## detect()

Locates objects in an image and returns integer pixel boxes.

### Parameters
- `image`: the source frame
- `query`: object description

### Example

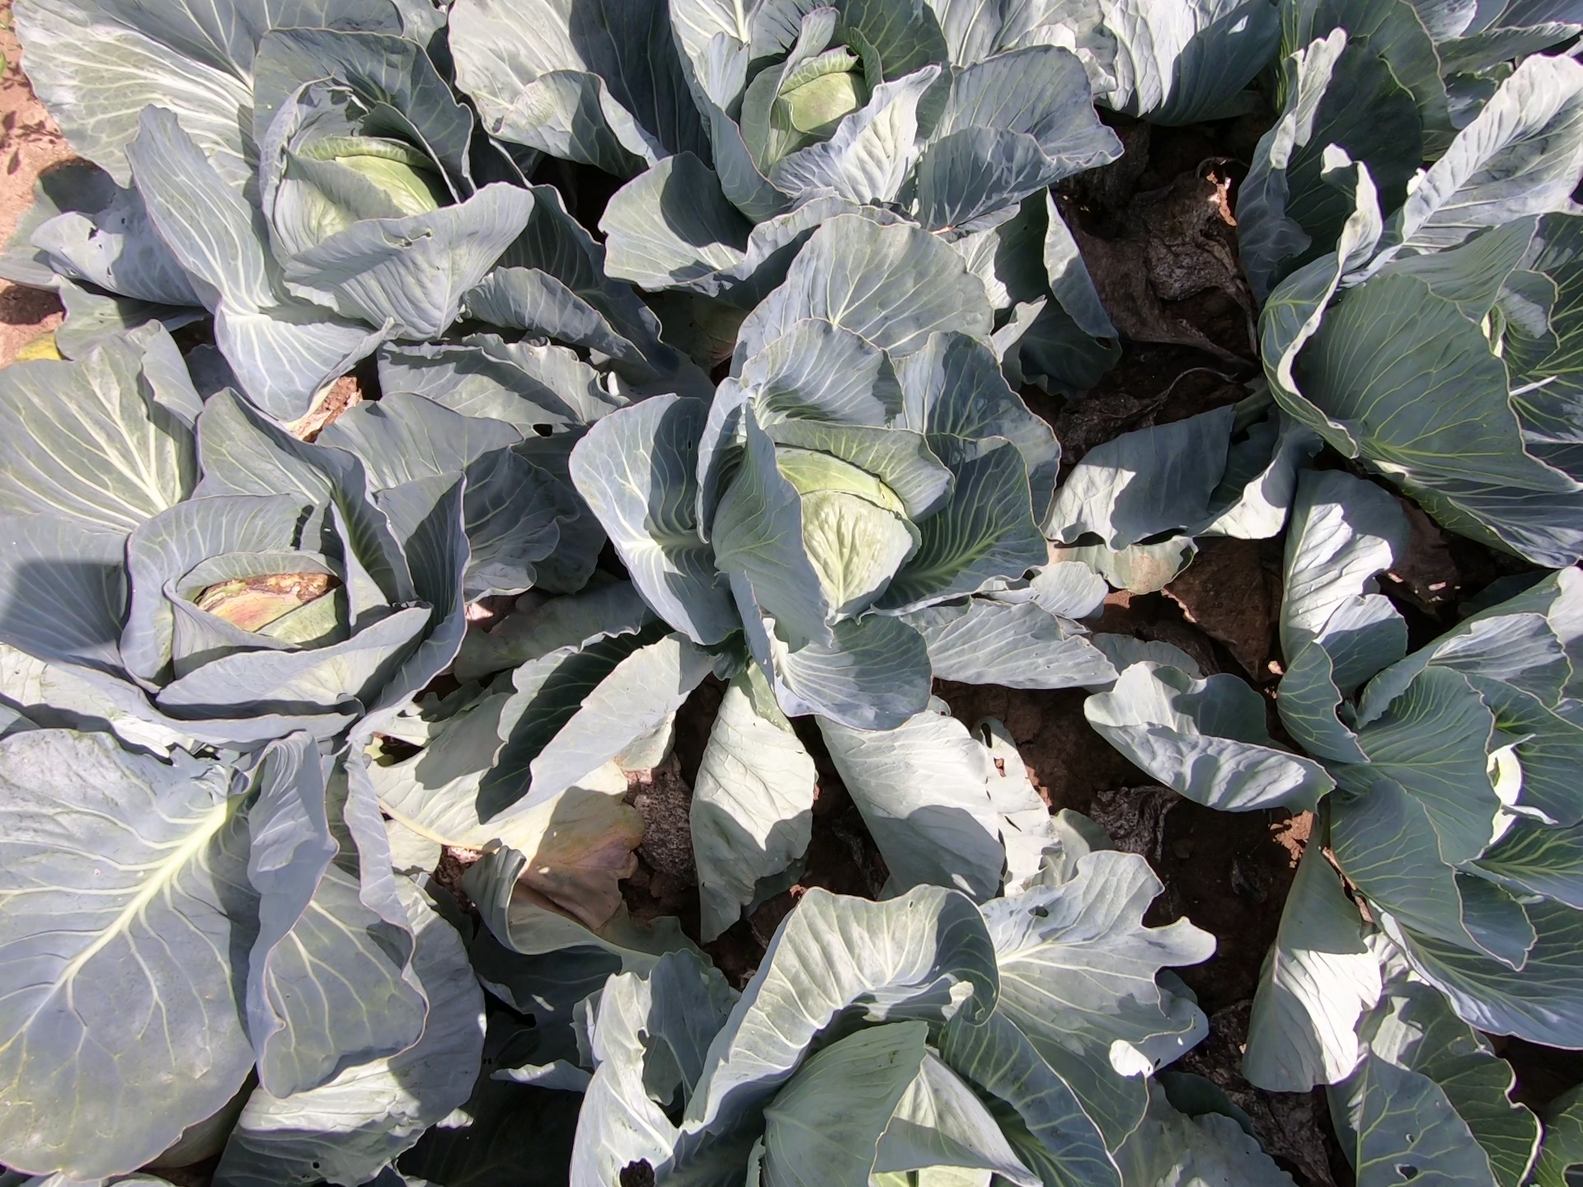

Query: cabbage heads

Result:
[770,1035,999,1185]
[1327,258,1505,416]
[744,53,900,197]
[723,435,912,624]
[284,143,465,320]
[168,551,385,729]
[1401,728,1524,856]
